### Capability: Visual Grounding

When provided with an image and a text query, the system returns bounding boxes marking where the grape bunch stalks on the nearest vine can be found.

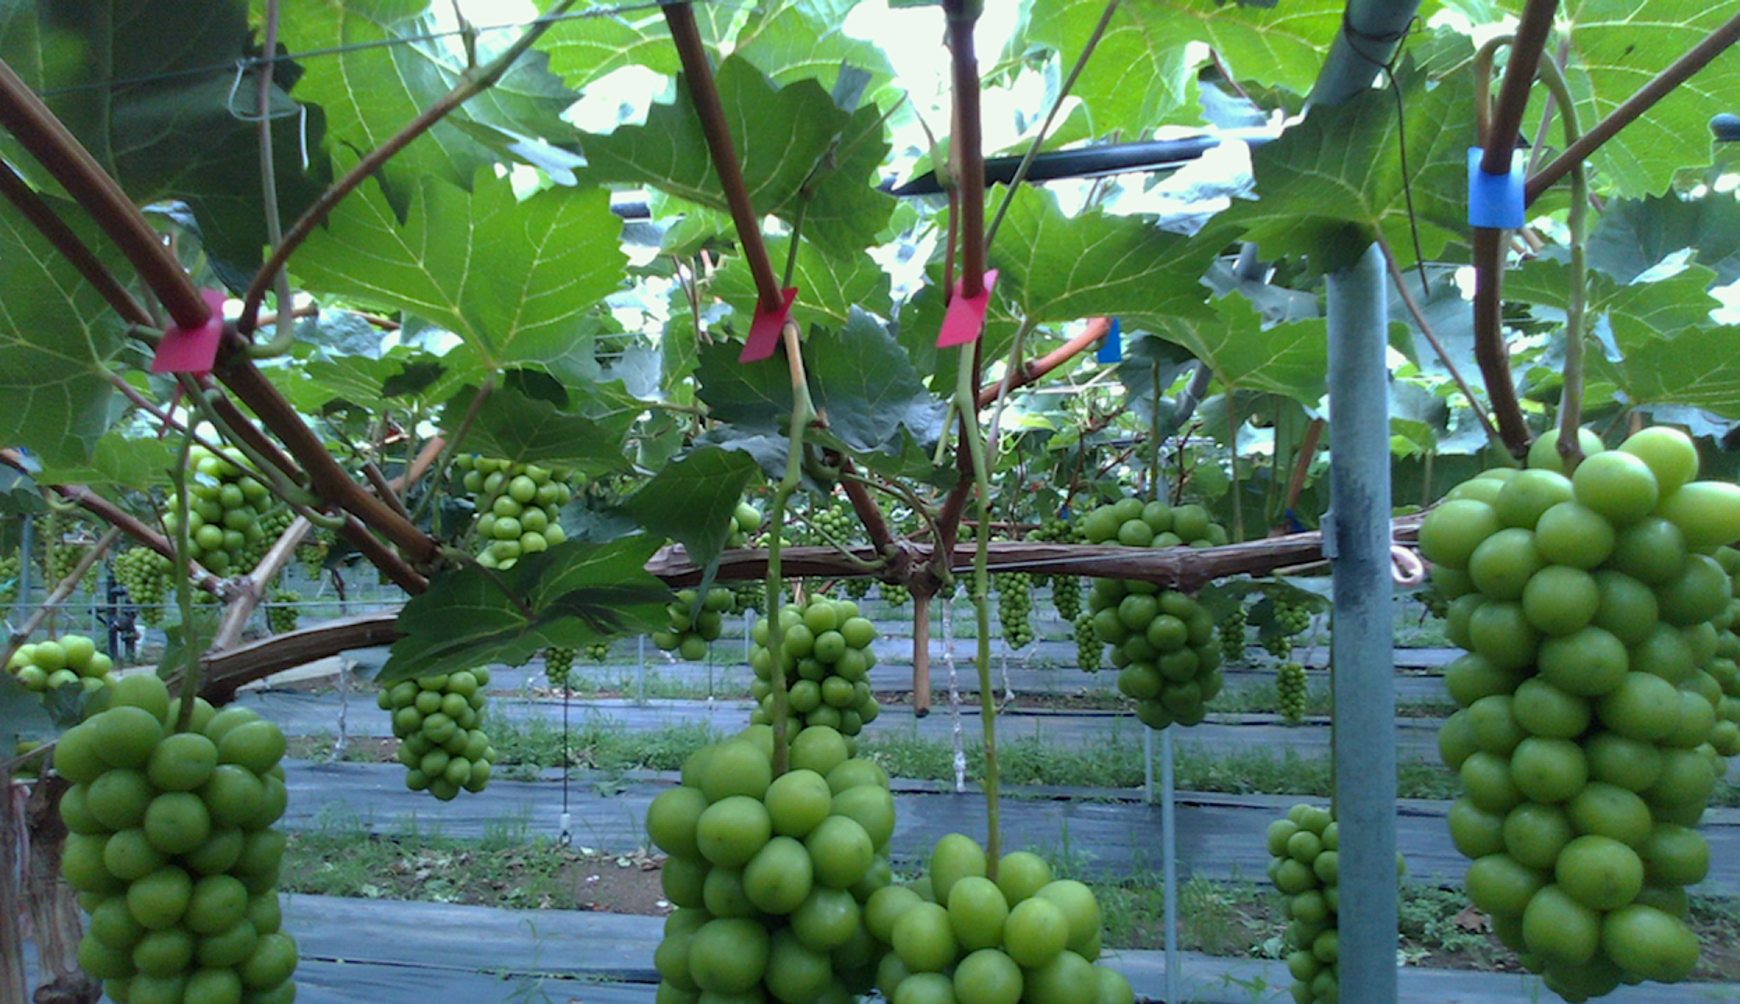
[765,332,828,778]
[934,342,1000,880]
[1556,167,1587,471]
[166,411,202,731]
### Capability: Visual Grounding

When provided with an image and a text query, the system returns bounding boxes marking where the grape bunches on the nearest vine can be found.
[641,725,899,1003]
[863,832,1132,1003]
[56,674,301,1003]
[1414,425,1739,1001]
